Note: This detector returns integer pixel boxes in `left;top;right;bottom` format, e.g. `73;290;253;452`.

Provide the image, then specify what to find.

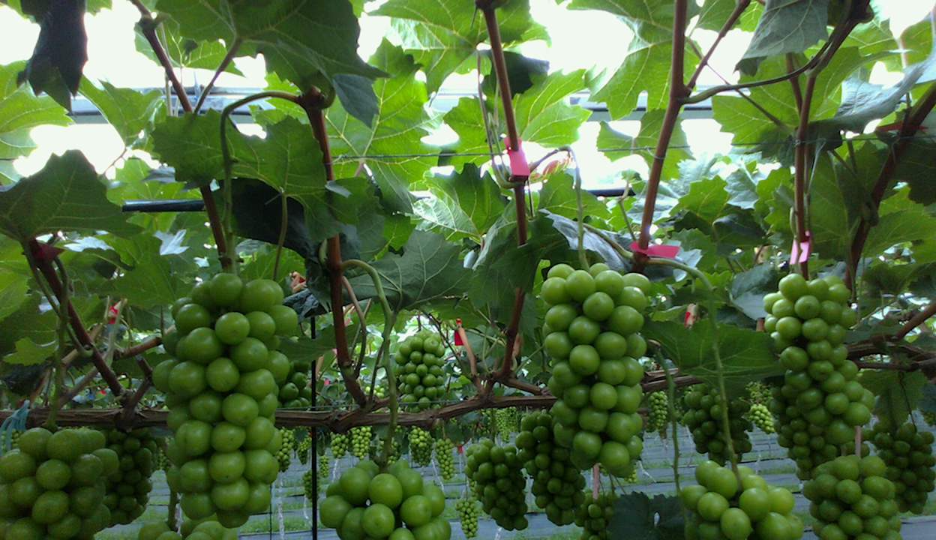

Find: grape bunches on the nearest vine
152;272;298;529
1;427;118;539
541;262;649;478
319;460;453;539
801;453;904;539
763;273;874;444
679;459;803;538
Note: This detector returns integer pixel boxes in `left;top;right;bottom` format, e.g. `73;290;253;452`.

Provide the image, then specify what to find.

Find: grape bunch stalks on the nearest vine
41;256;69;433
704;310;742;508
340;259;398;473
529;145;592;276
218;91;299;274
788;206;802;274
